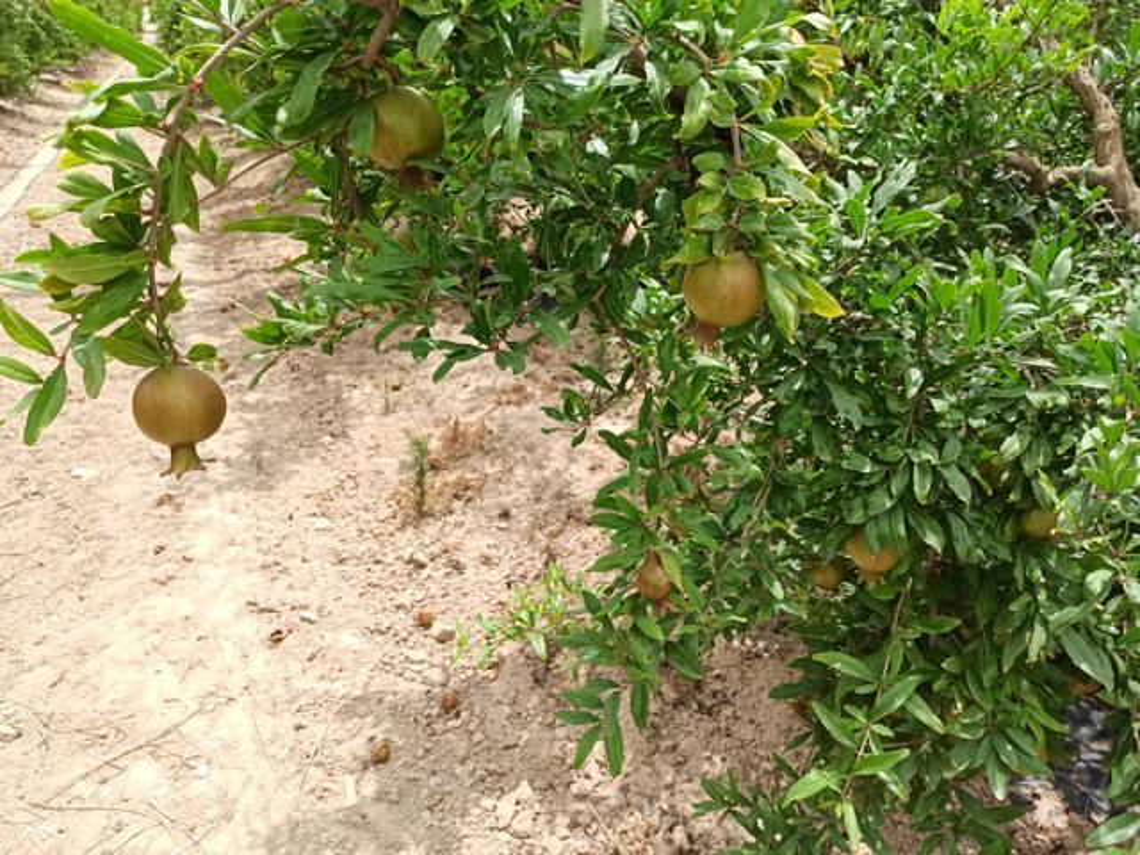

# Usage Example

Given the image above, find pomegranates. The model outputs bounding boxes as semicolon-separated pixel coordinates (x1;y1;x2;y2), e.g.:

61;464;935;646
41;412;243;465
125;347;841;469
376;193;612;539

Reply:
369;82;447;191
1021;508;1058;540
812;565;843;591
130;363;228;481
843;529;900;590
680;249;764;353
632;552;675;616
